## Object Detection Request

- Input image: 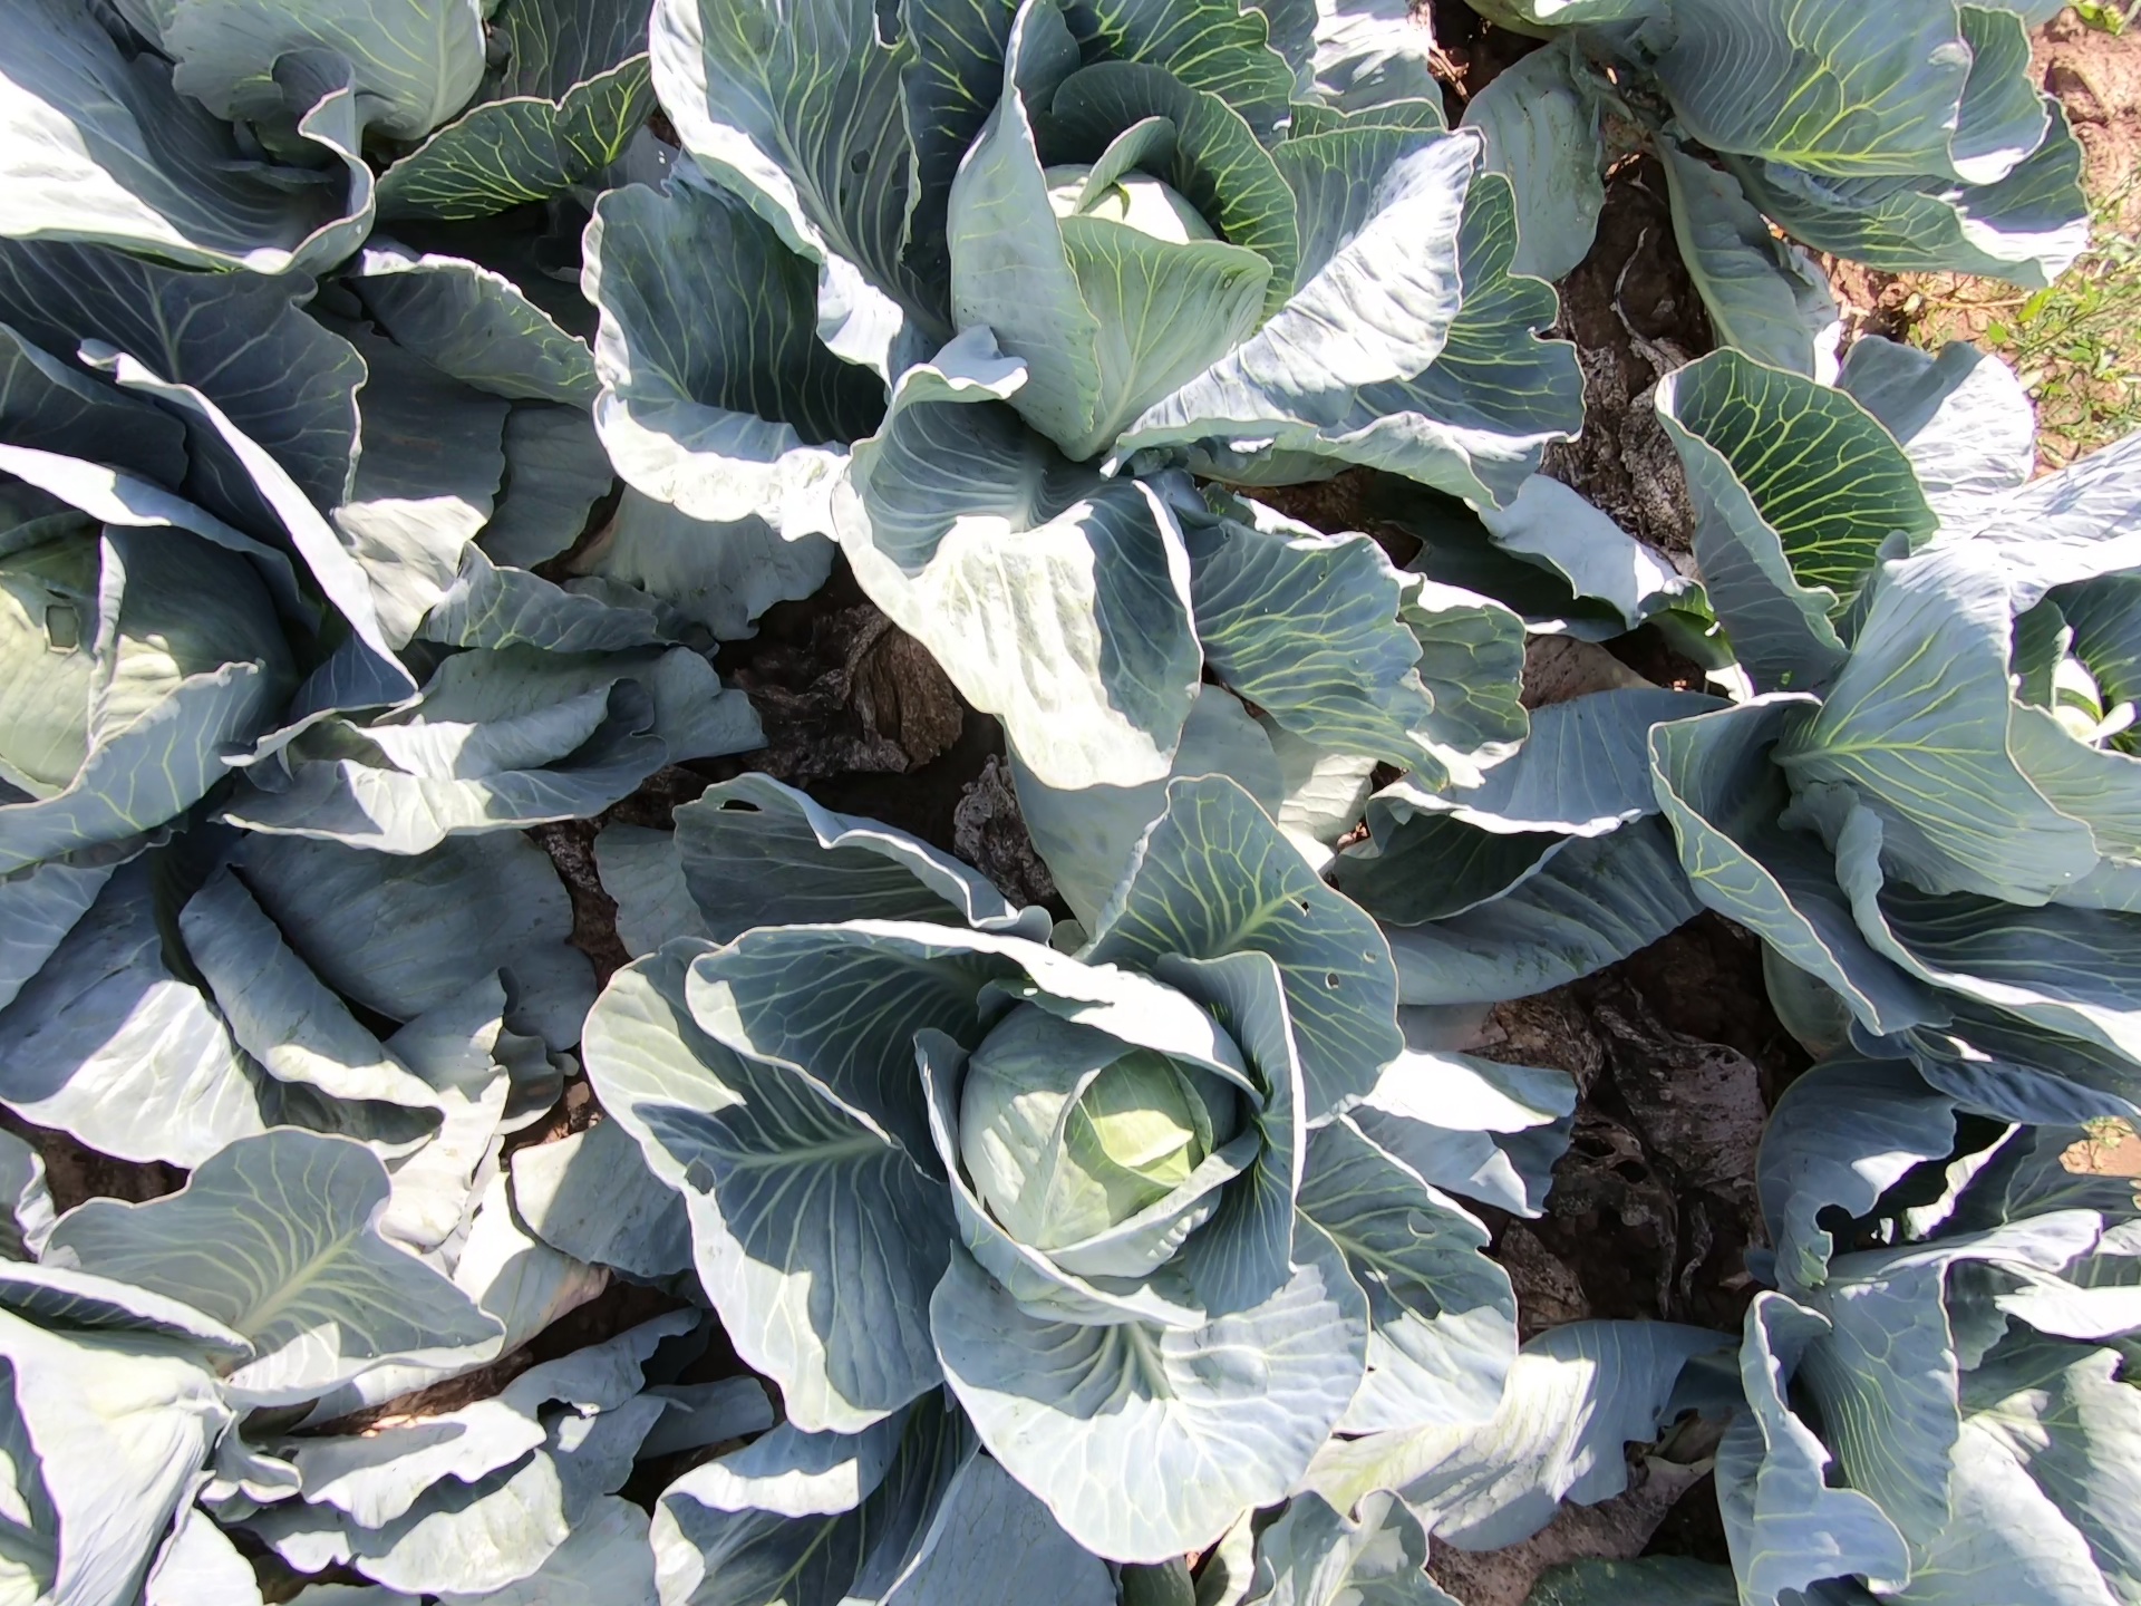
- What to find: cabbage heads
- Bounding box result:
[2,483,281,809]
[1927,621,2103,800]
[973,166,1234,438]
[961,989,1239,1275]
[4,1342,157,1604]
